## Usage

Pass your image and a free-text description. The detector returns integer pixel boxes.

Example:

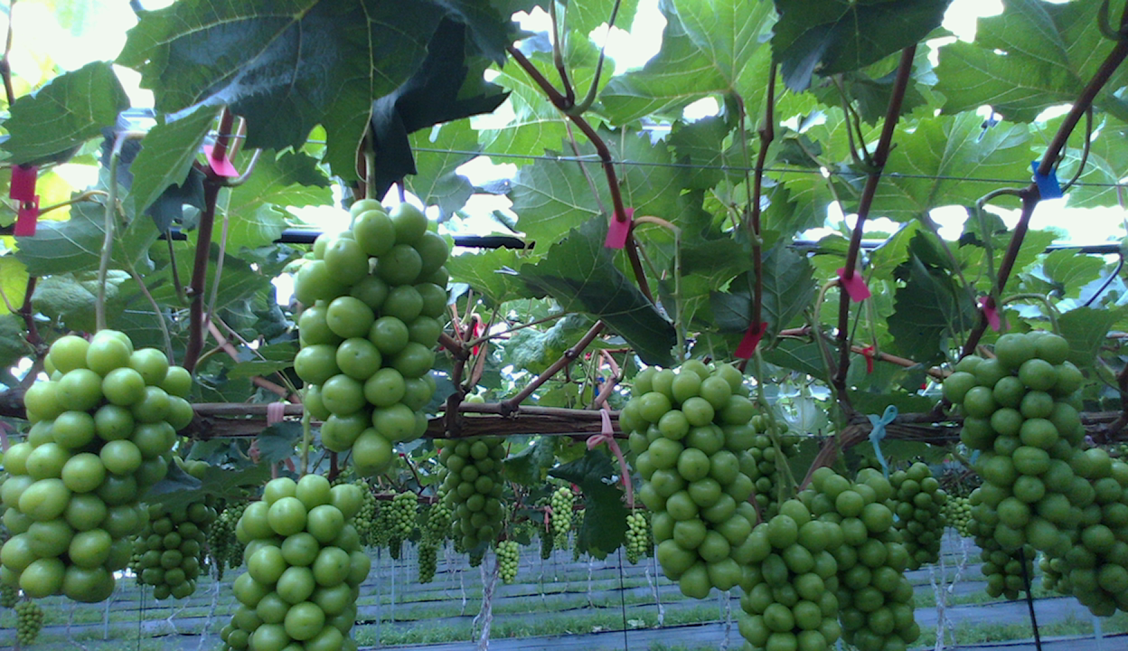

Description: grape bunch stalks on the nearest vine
[813,279,851,483]
[632,215,685,365]
[754,347,785,513]
[298,382,309,478]
[974,187,1026,335]
[362,123,376,199]
[95,130,146,332]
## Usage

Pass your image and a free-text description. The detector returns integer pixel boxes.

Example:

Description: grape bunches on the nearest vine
[942,331,1094,559]
[618,359,757,599]
[796,467,921,649]
[737,500,845,650]
[233,474,371,650]
[0,328,194,603]
[292,198,449,476]
[1065,448,1127,618]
